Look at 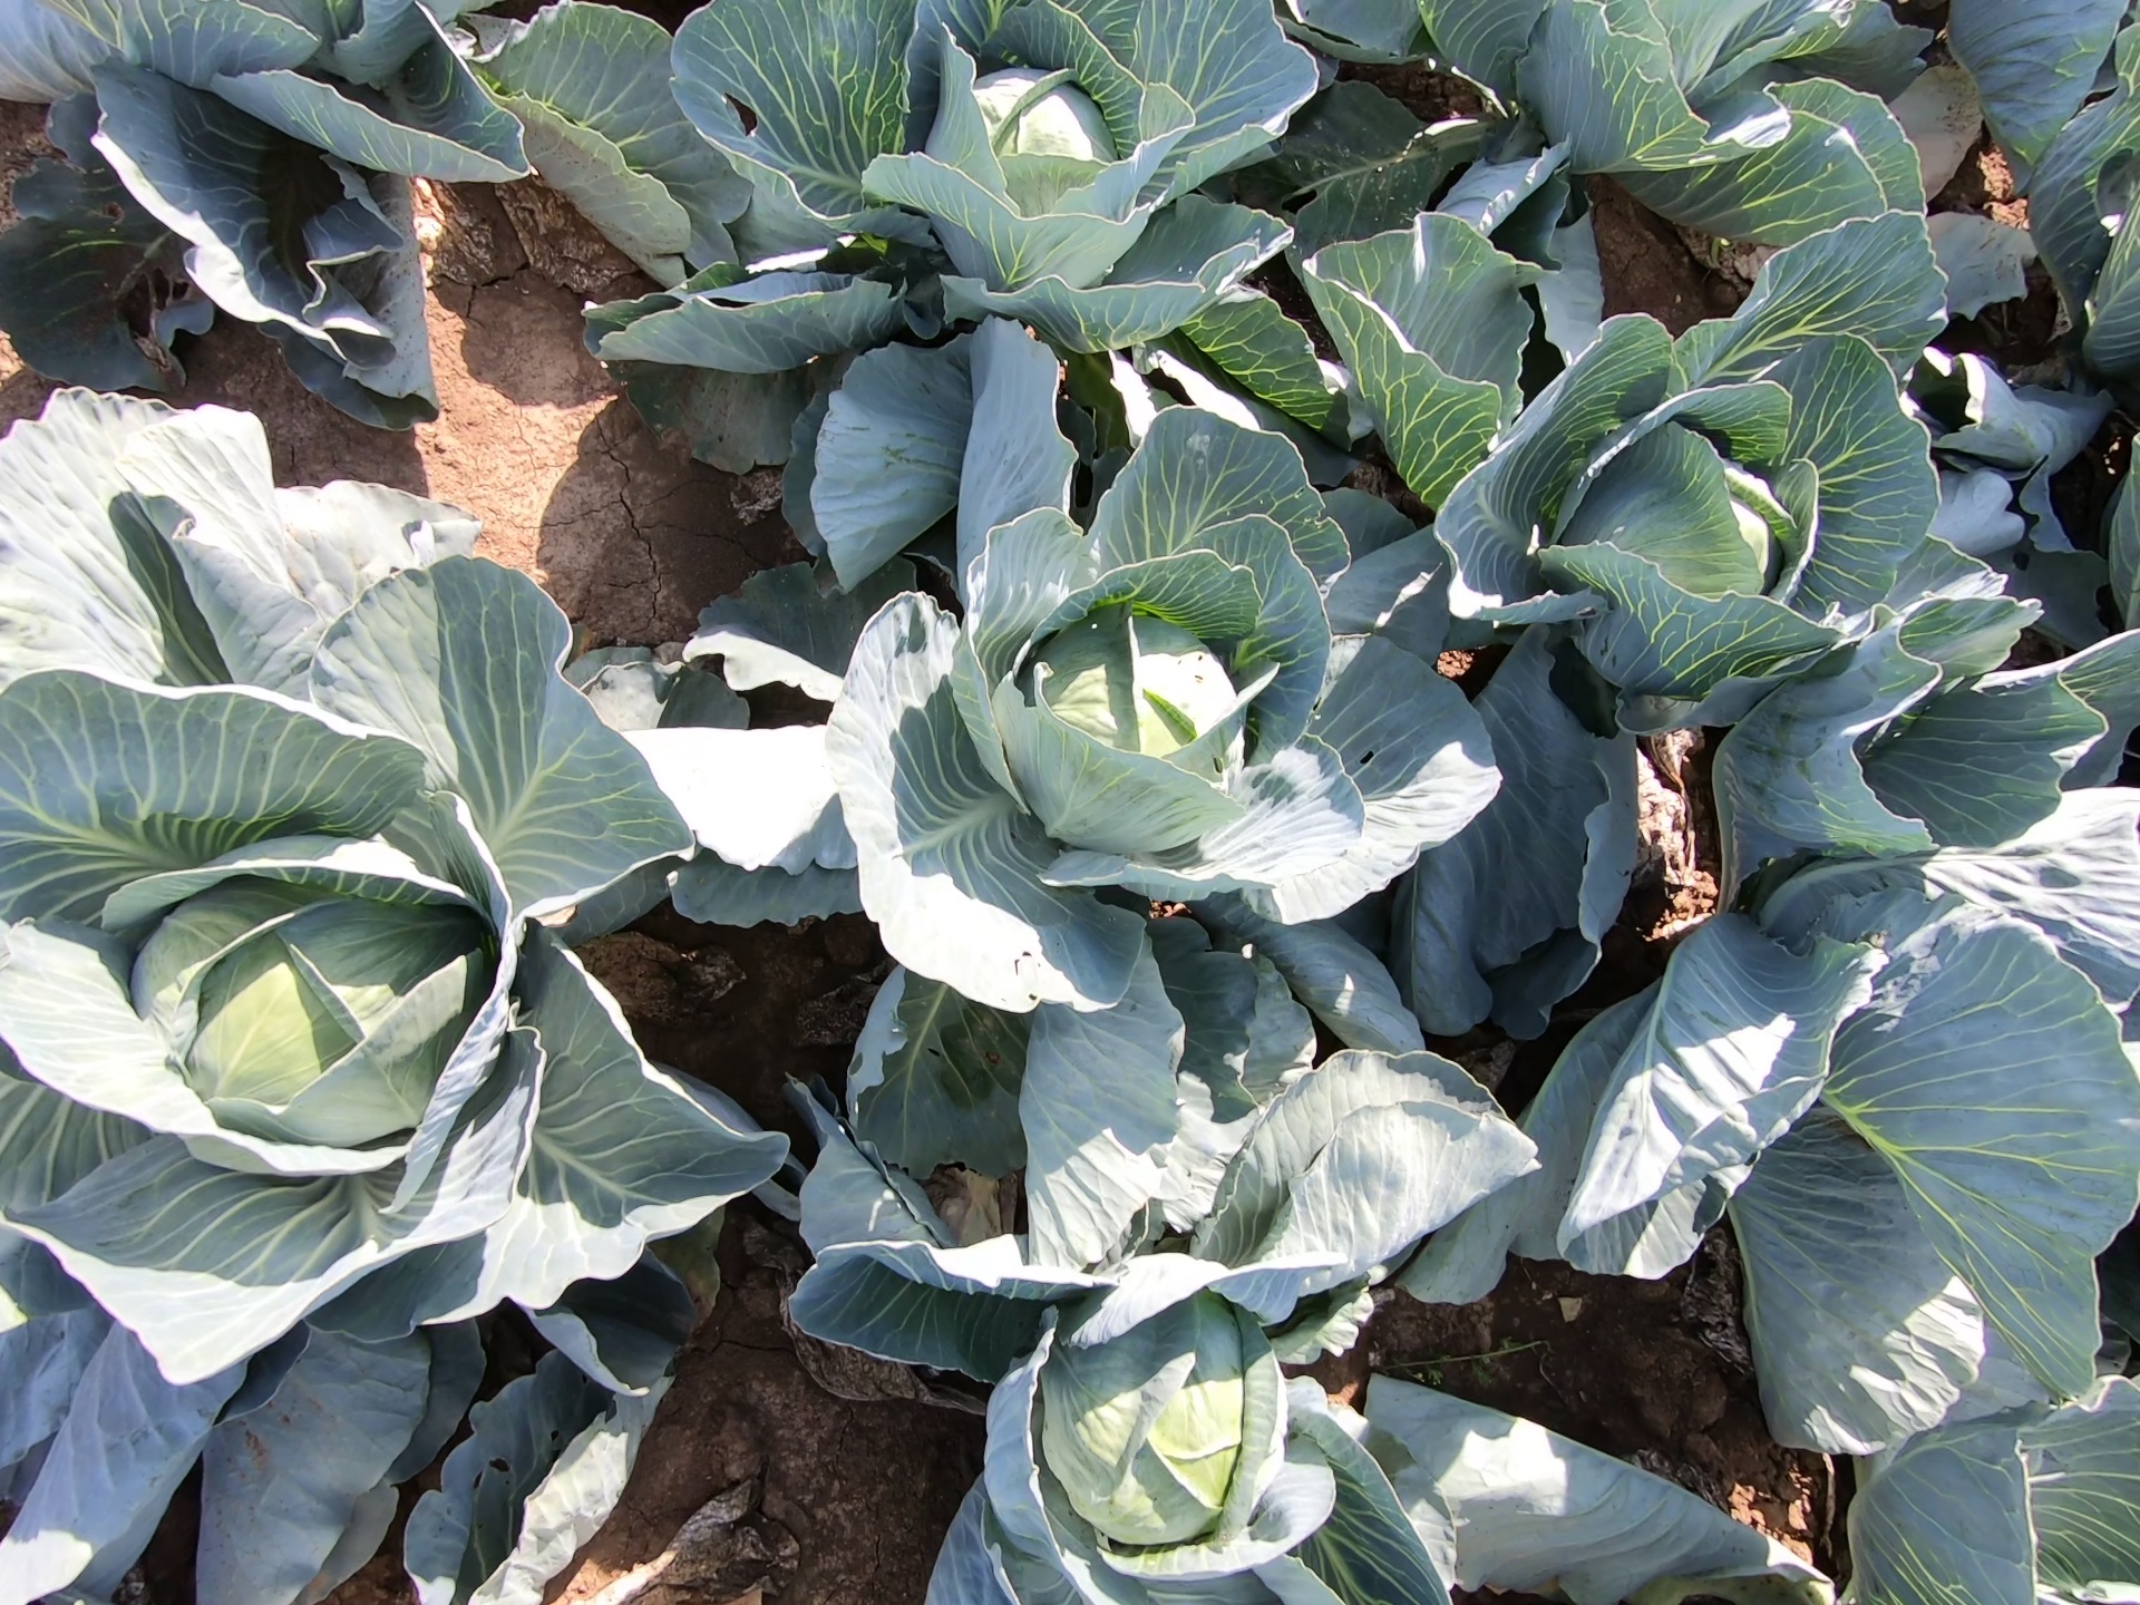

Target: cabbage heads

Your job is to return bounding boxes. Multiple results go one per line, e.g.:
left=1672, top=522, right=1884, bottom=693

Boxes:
left=1038, top=1270, right=1284, bottom=1544
left=926, top=68, right=1140, bottom=274
left=1569, top=445, right=1790, bottom=650
left=129, top=845, right=486, bottom=1149
left=1006, top=605, right=1246, bottom=836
